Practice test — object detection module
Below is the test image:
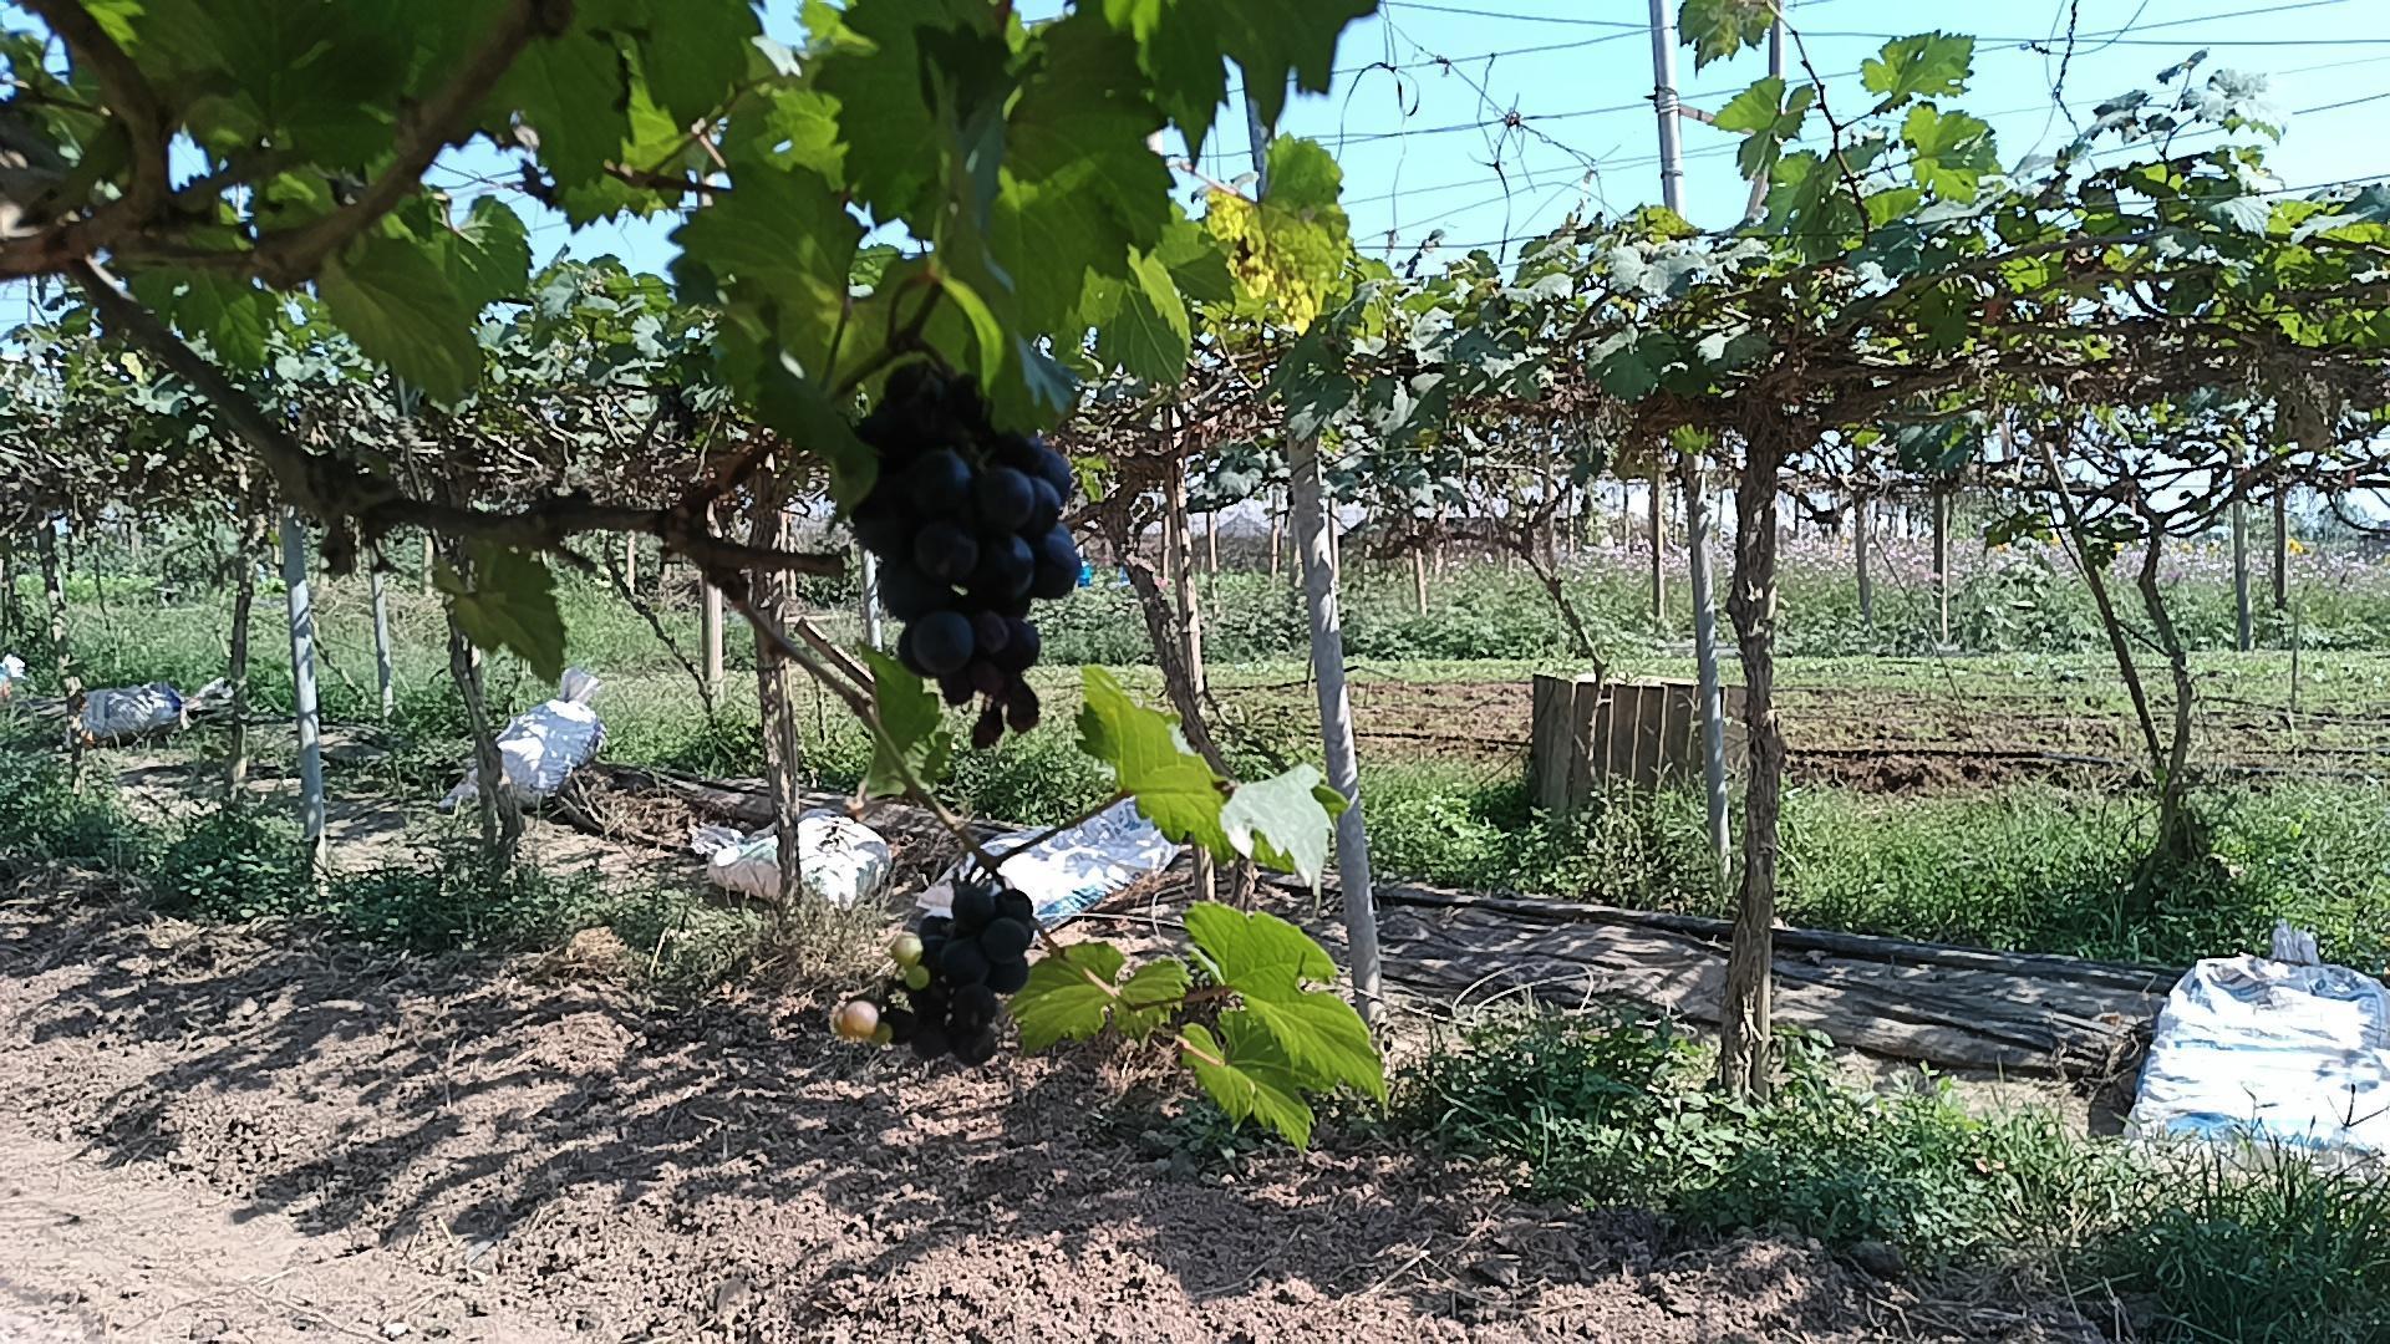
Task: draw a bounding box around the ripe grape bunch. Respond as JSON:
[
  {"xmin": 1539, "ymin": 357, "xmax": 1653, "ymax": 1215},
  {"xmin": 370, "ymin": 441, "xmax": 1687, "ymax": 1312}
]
[{"xmin": 850, "ymin": 365, "xmax": 1082, "ymax": 747}]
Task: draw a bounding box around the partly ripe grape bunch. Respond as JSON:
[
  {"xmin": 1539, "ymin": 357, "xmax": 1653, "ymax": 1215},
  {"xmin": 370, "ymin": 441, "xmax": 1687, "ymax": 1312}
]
[{"xmin": 830, "ymin": 874, "xmax": 1043, "ymax": 1064}]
